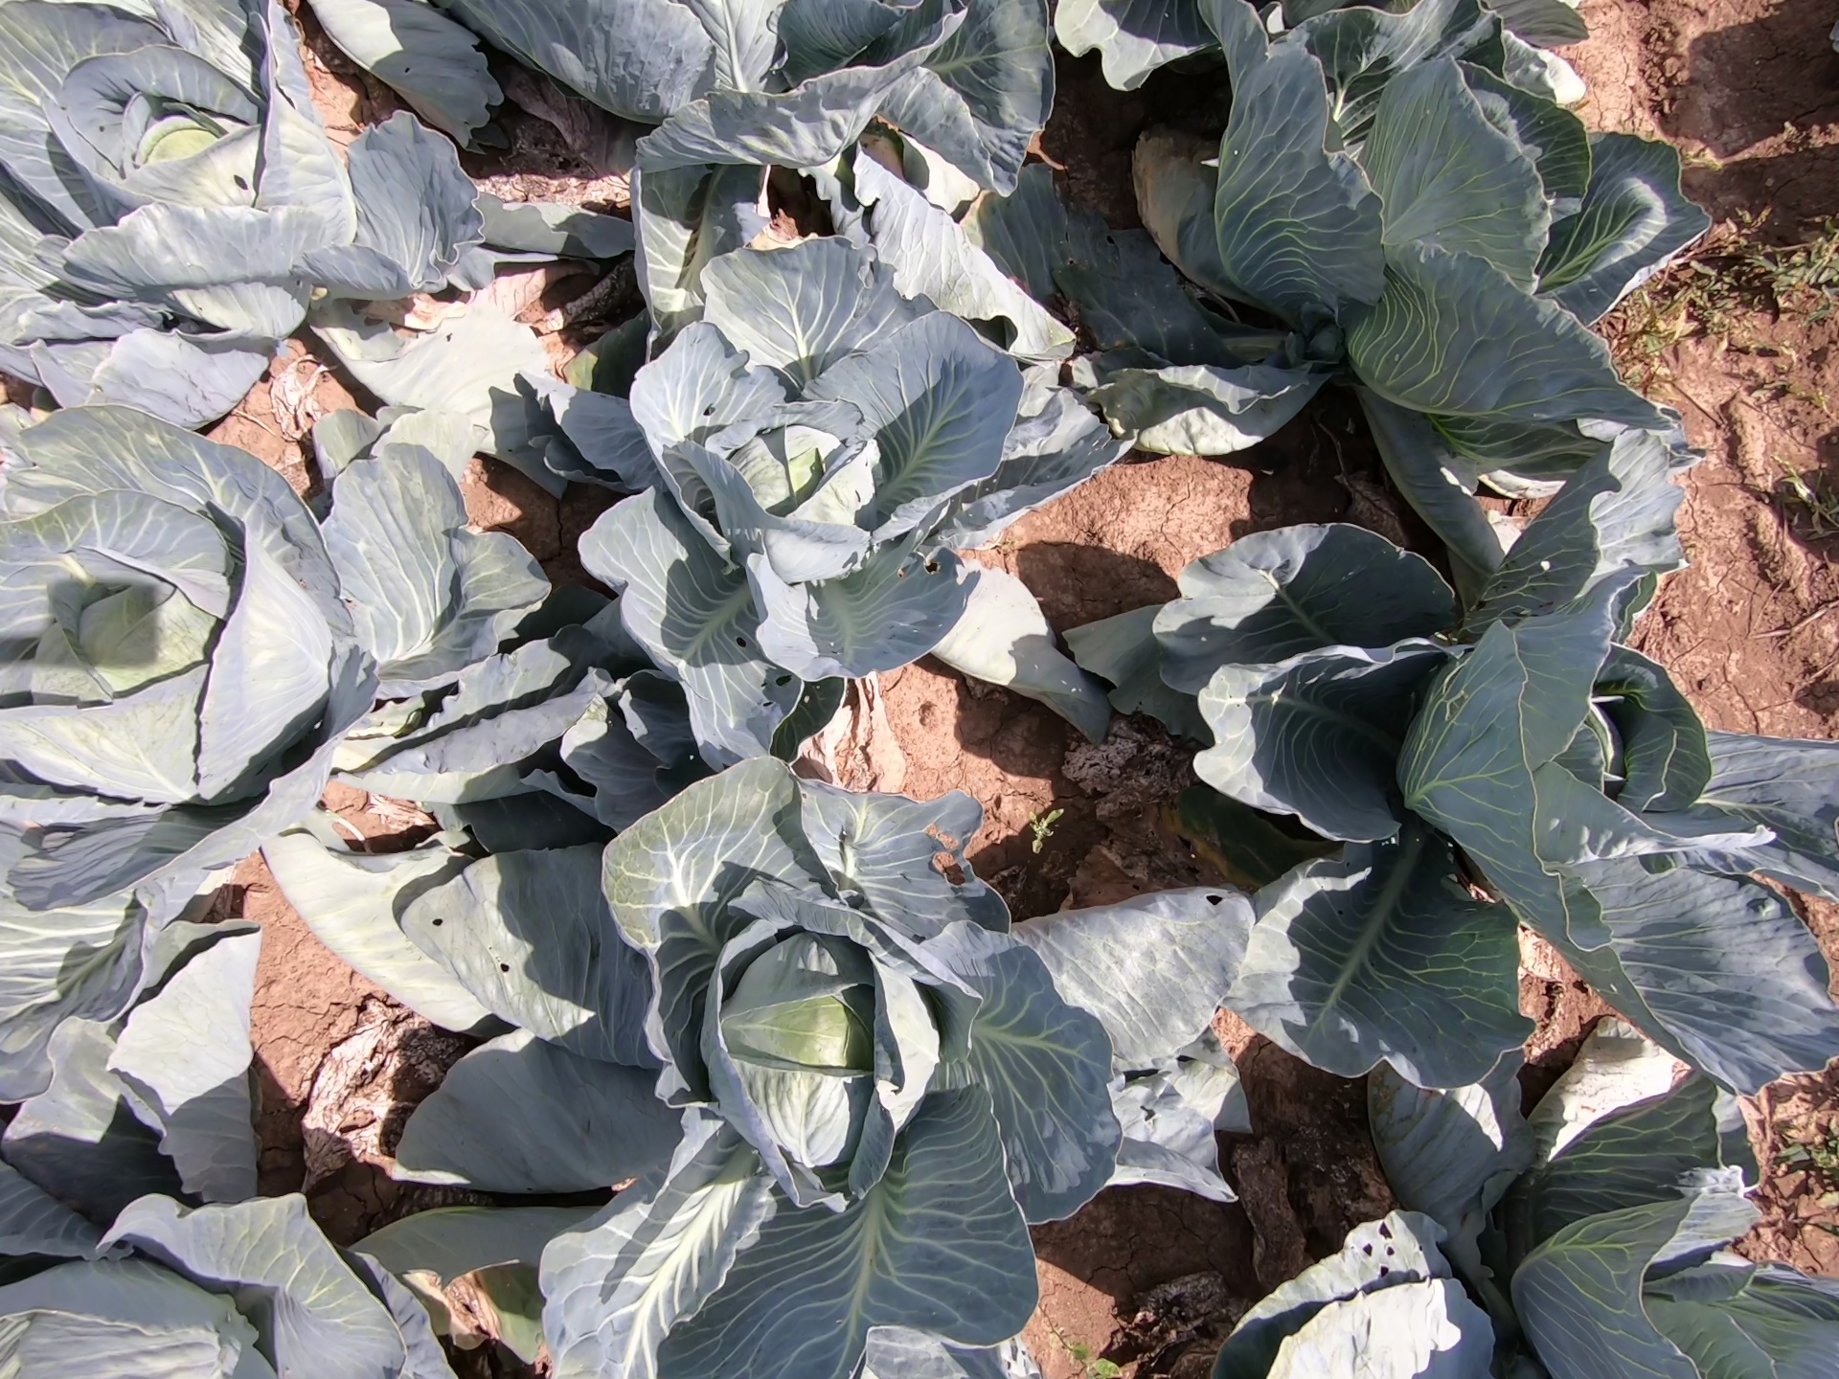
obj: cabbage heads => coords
[126,114,279,254]
[1413,667,1630,853]
[706,932,942,1173]
[5,1260,278,1376]
[719,420,878,576]
[30,575,277,785]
